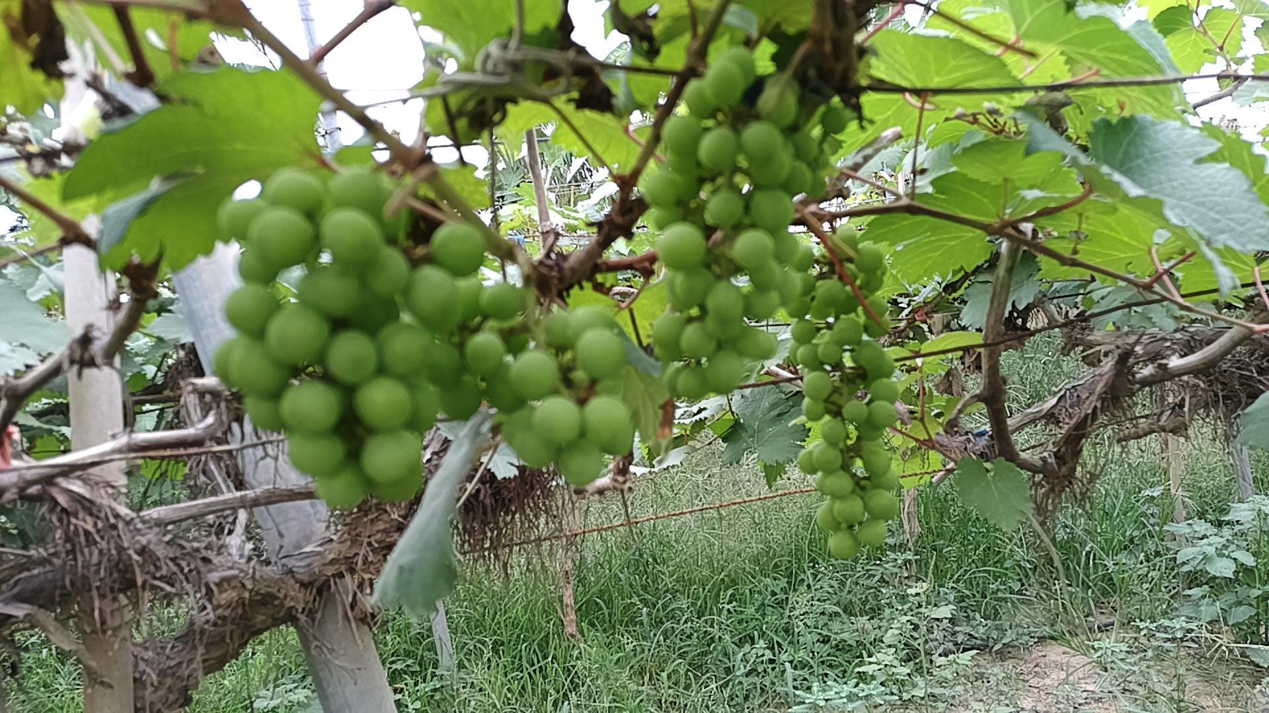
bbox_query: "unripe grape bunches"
[458,273,635,487]
[215,167,482,508]
[783,222,899,559]
[644,49,845,397]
